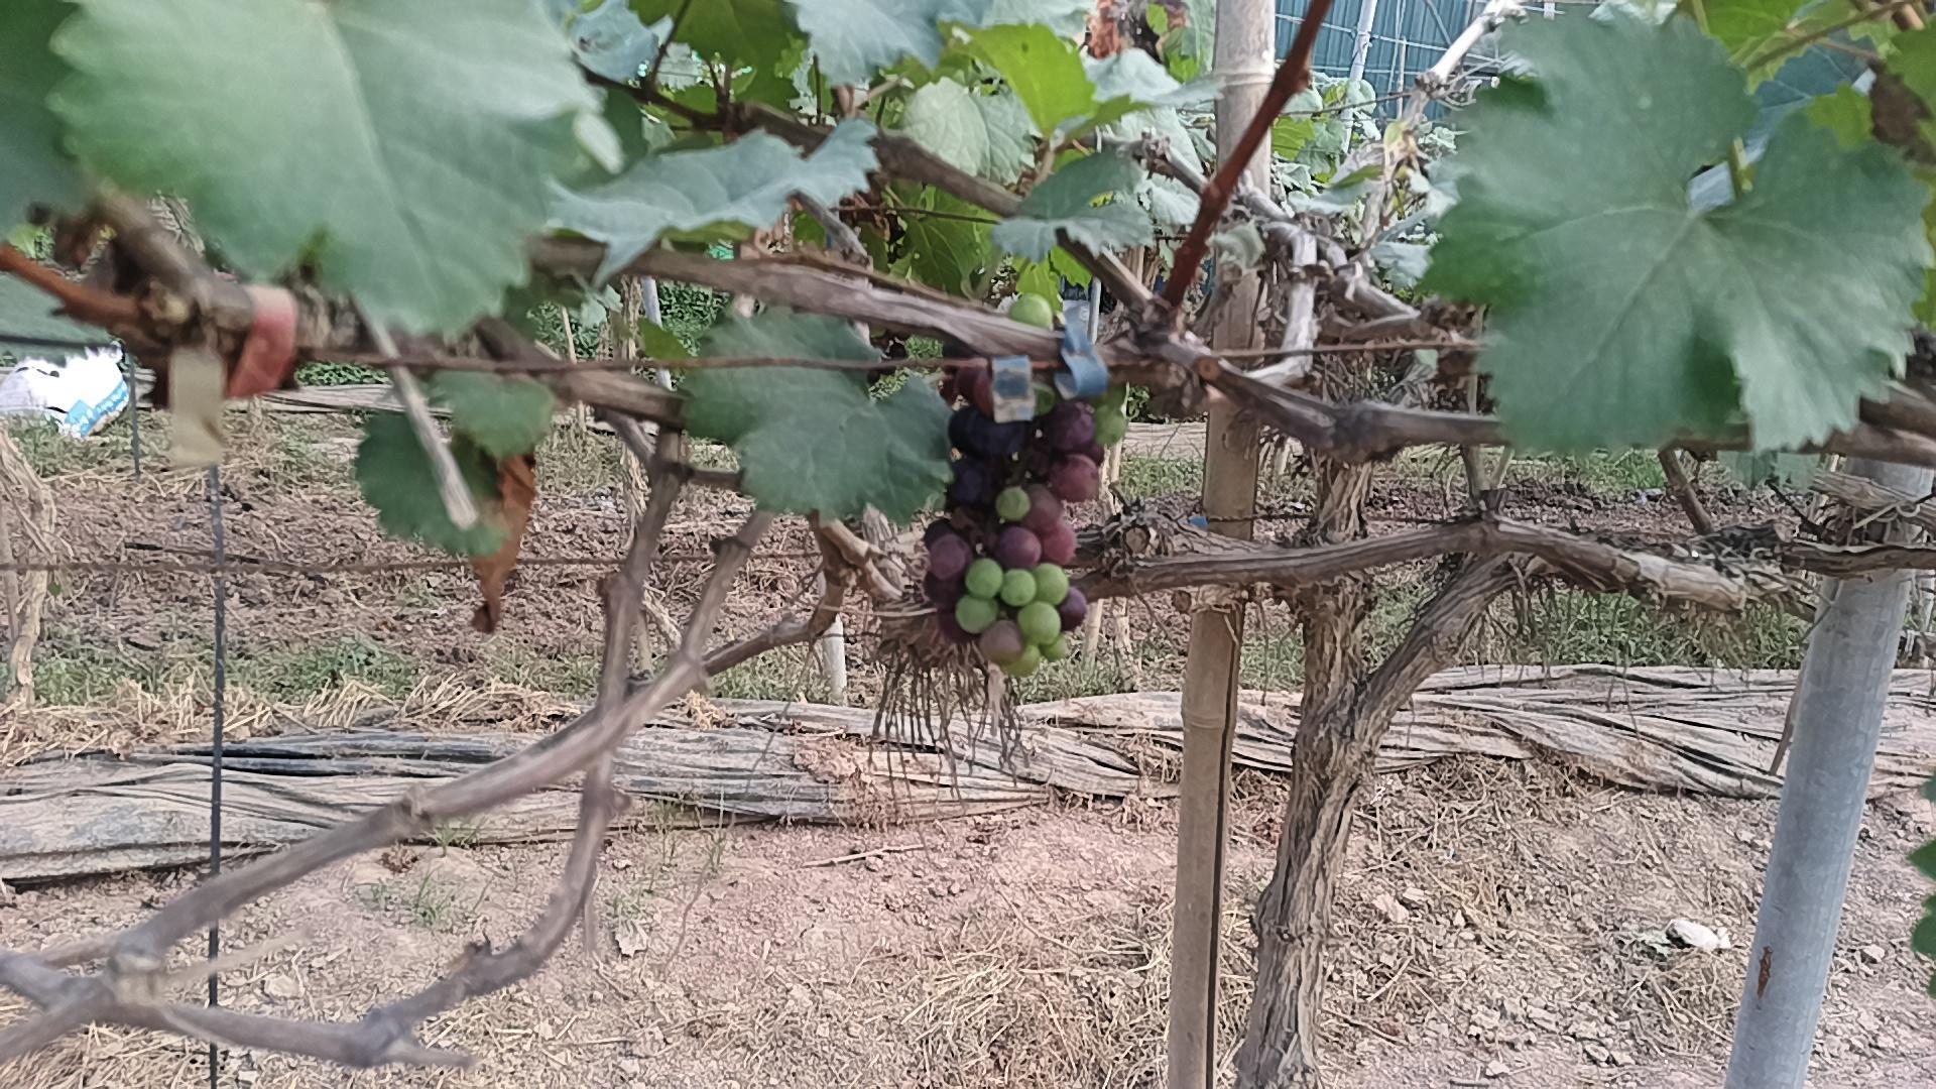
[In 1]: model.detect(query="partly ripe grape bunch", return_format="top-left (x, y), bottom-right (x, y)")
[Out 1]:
top-left (922, 290), bottom-right (1128, 678)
